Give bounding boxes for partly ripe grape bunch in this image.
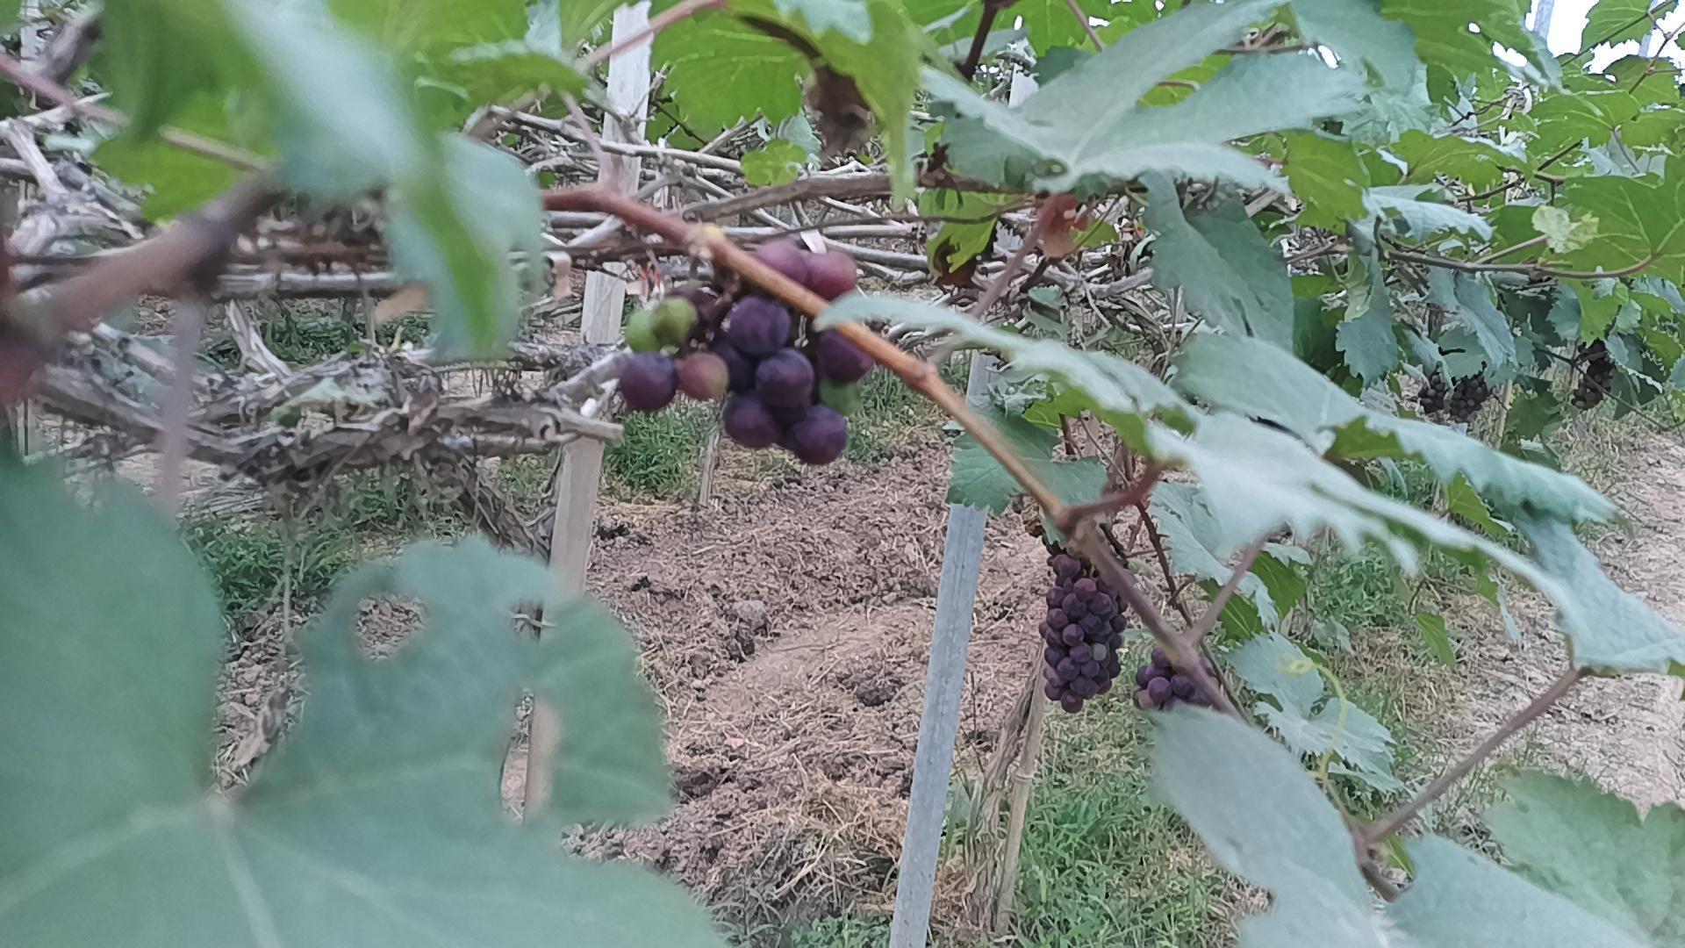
[617,238,873,464]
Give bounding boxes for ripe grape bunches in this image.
[1131,648,1228,711]
[1031,524,1129,714]
[1418,366,1448,414]
[1570,339,1617,410]
[1449,370,1495,423]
